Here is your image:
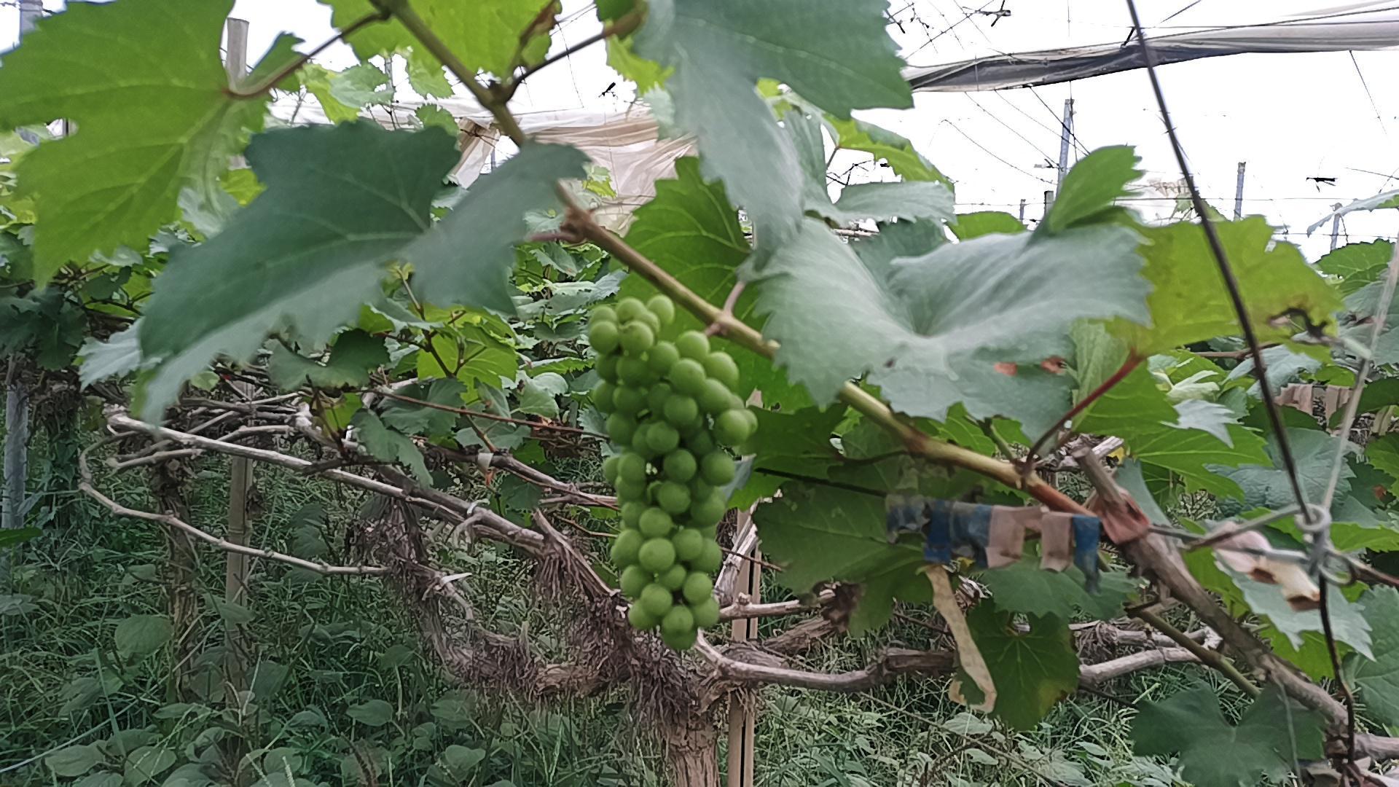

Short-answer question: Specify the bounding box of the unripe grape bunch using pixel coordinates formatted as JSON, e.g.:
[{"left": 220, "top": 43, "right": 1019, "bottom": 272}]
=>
[{"left": 589, "top": 297, "right": 756, "bottom": 649}]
